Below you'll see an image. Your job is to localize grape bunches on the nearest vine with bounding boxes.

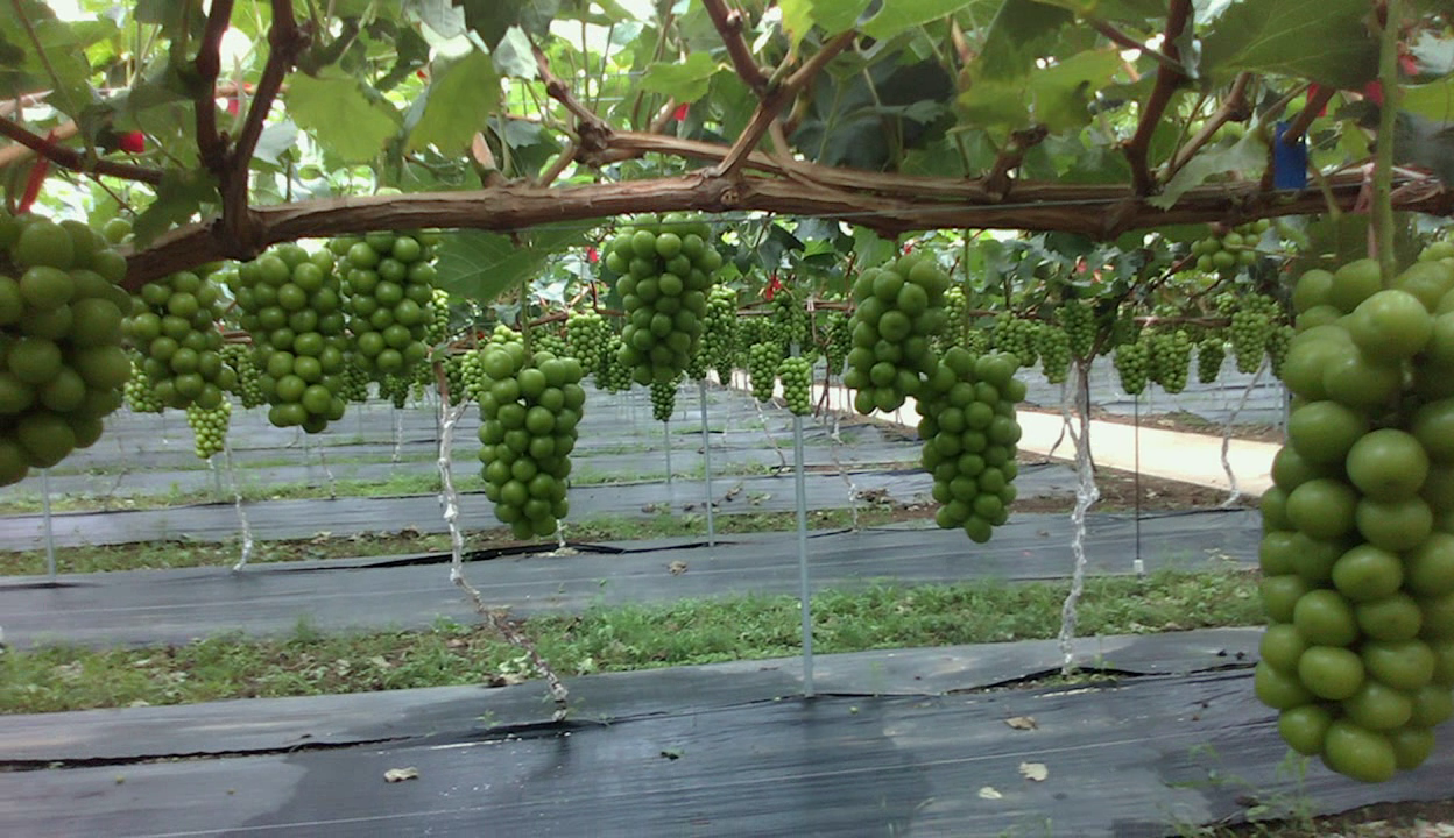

[1249,257,1453,783]
[0,207,133,485]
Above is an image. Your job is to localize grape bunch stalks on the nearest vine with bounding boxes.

[1374,0,1402,290]
[7,148,37,210]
